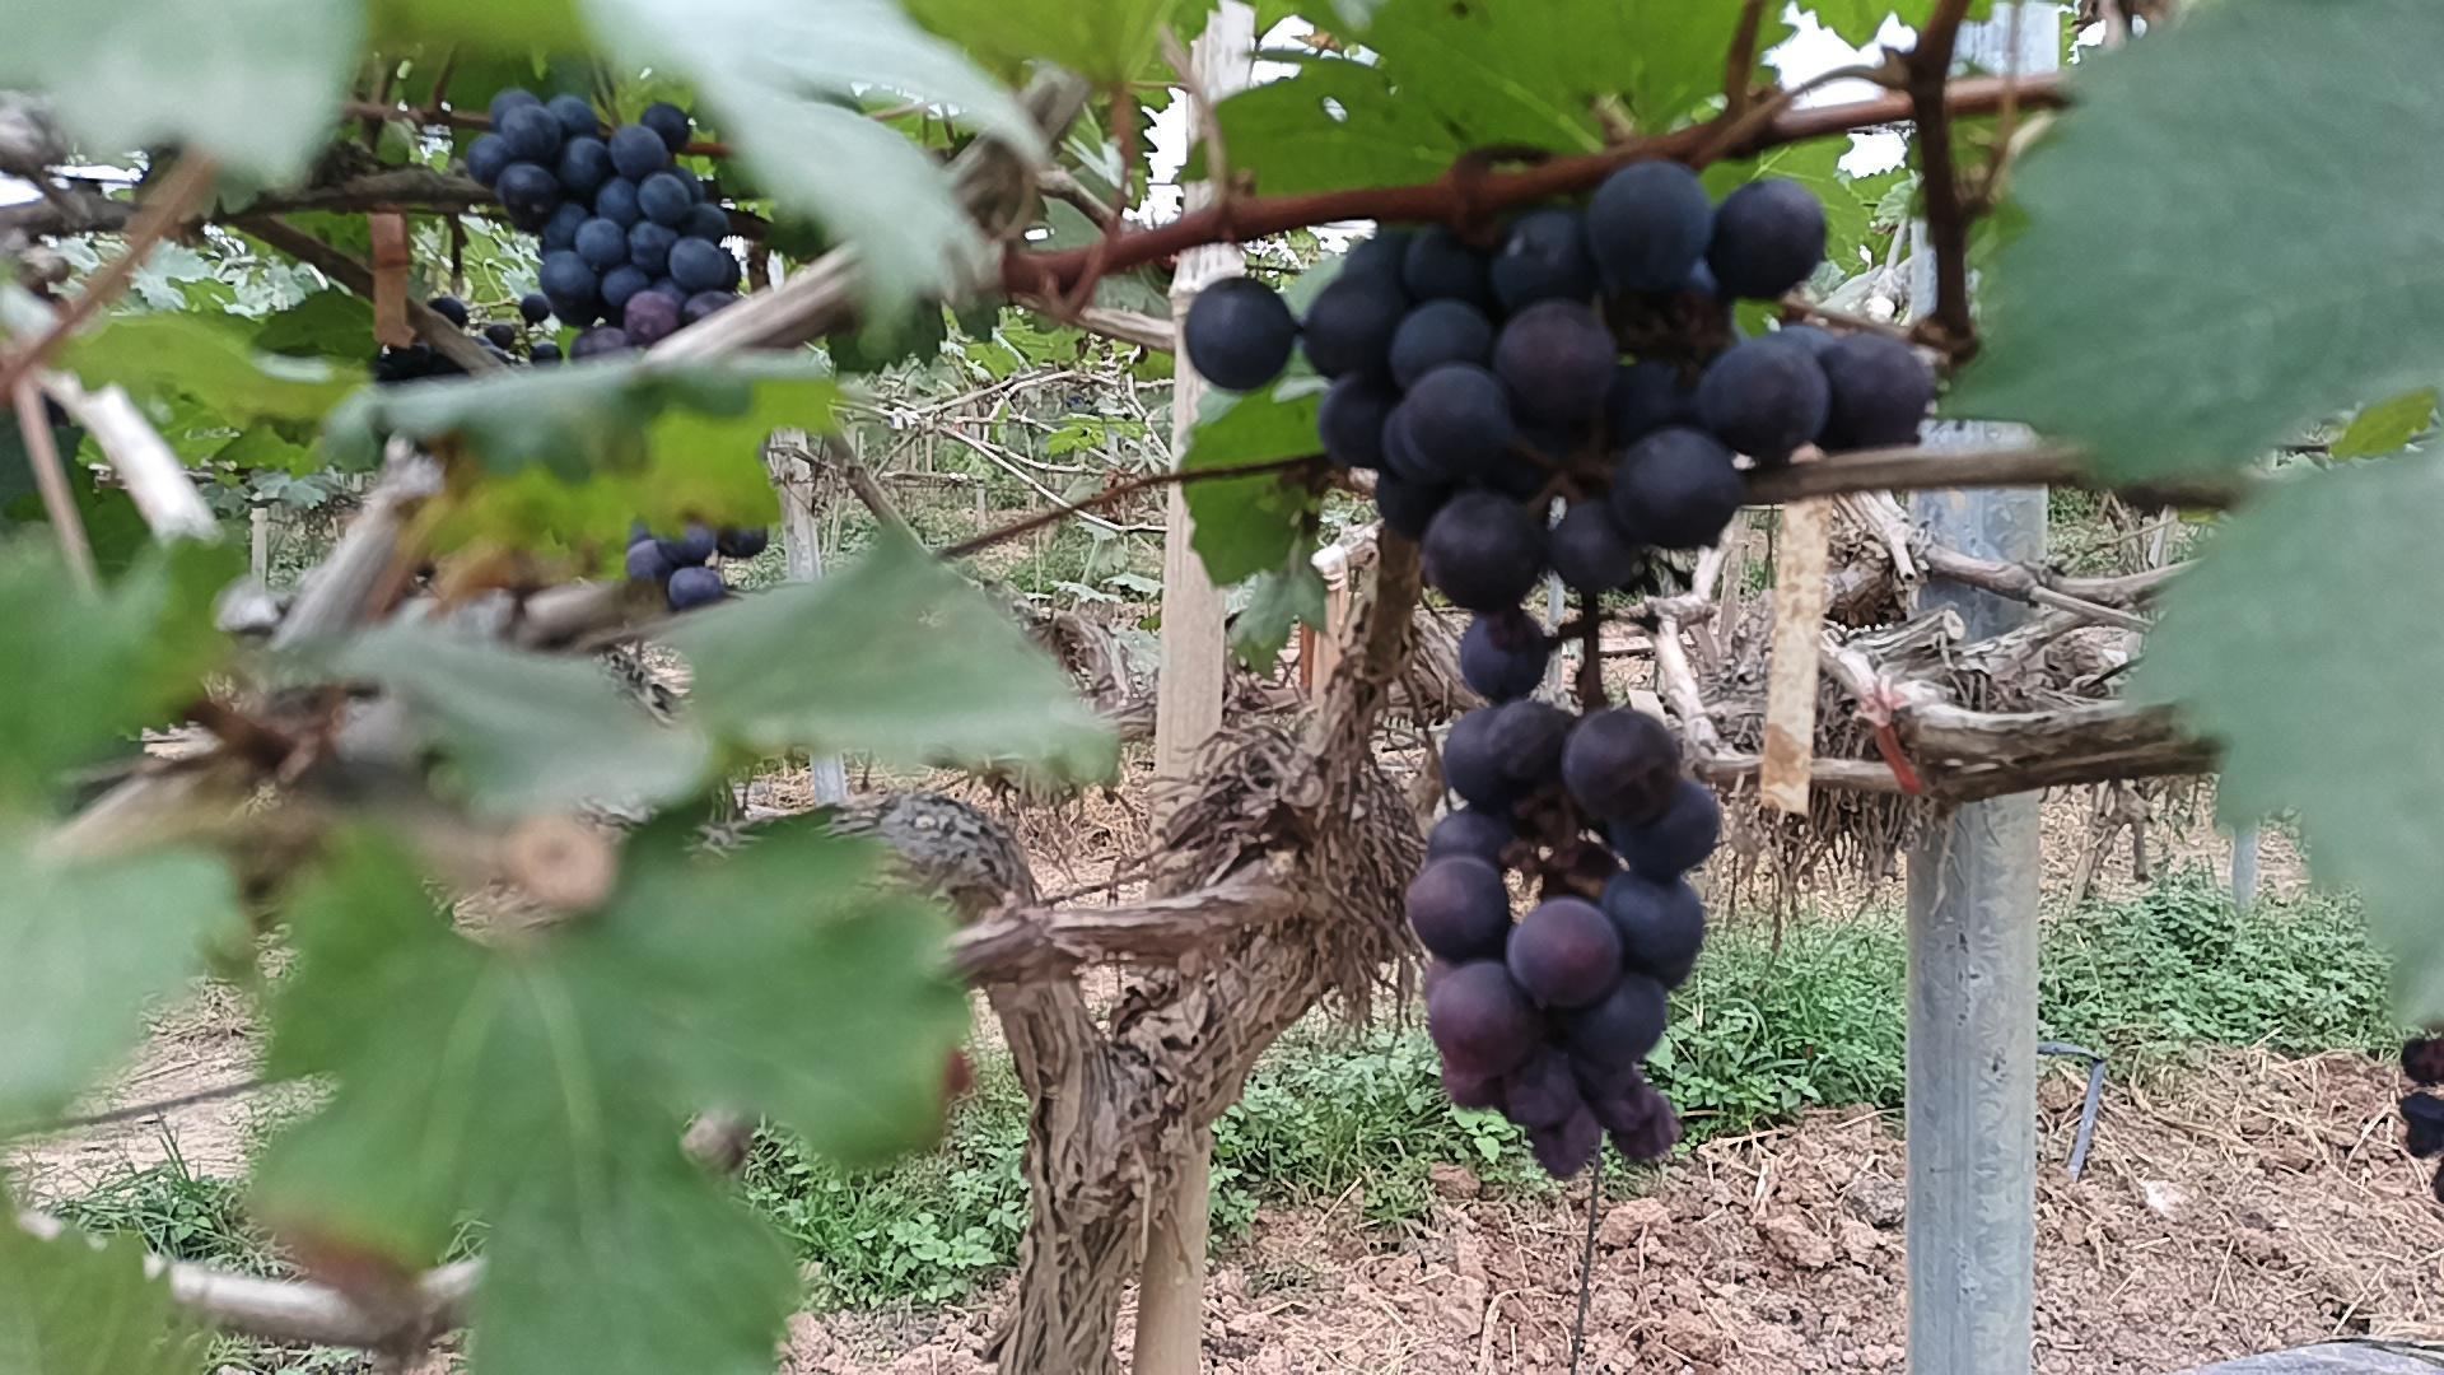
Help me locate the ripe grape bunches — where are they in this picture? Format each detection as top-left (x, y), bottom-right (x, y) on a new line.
top-left (2397, 1035), bottom-right (2443, 1203)
top-left (1179, 163), bottom-right (1927, 1178)
top-left (467, 89), bottom-right (775, 609)
top-left (372, 294), bottom-right (559, 382)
